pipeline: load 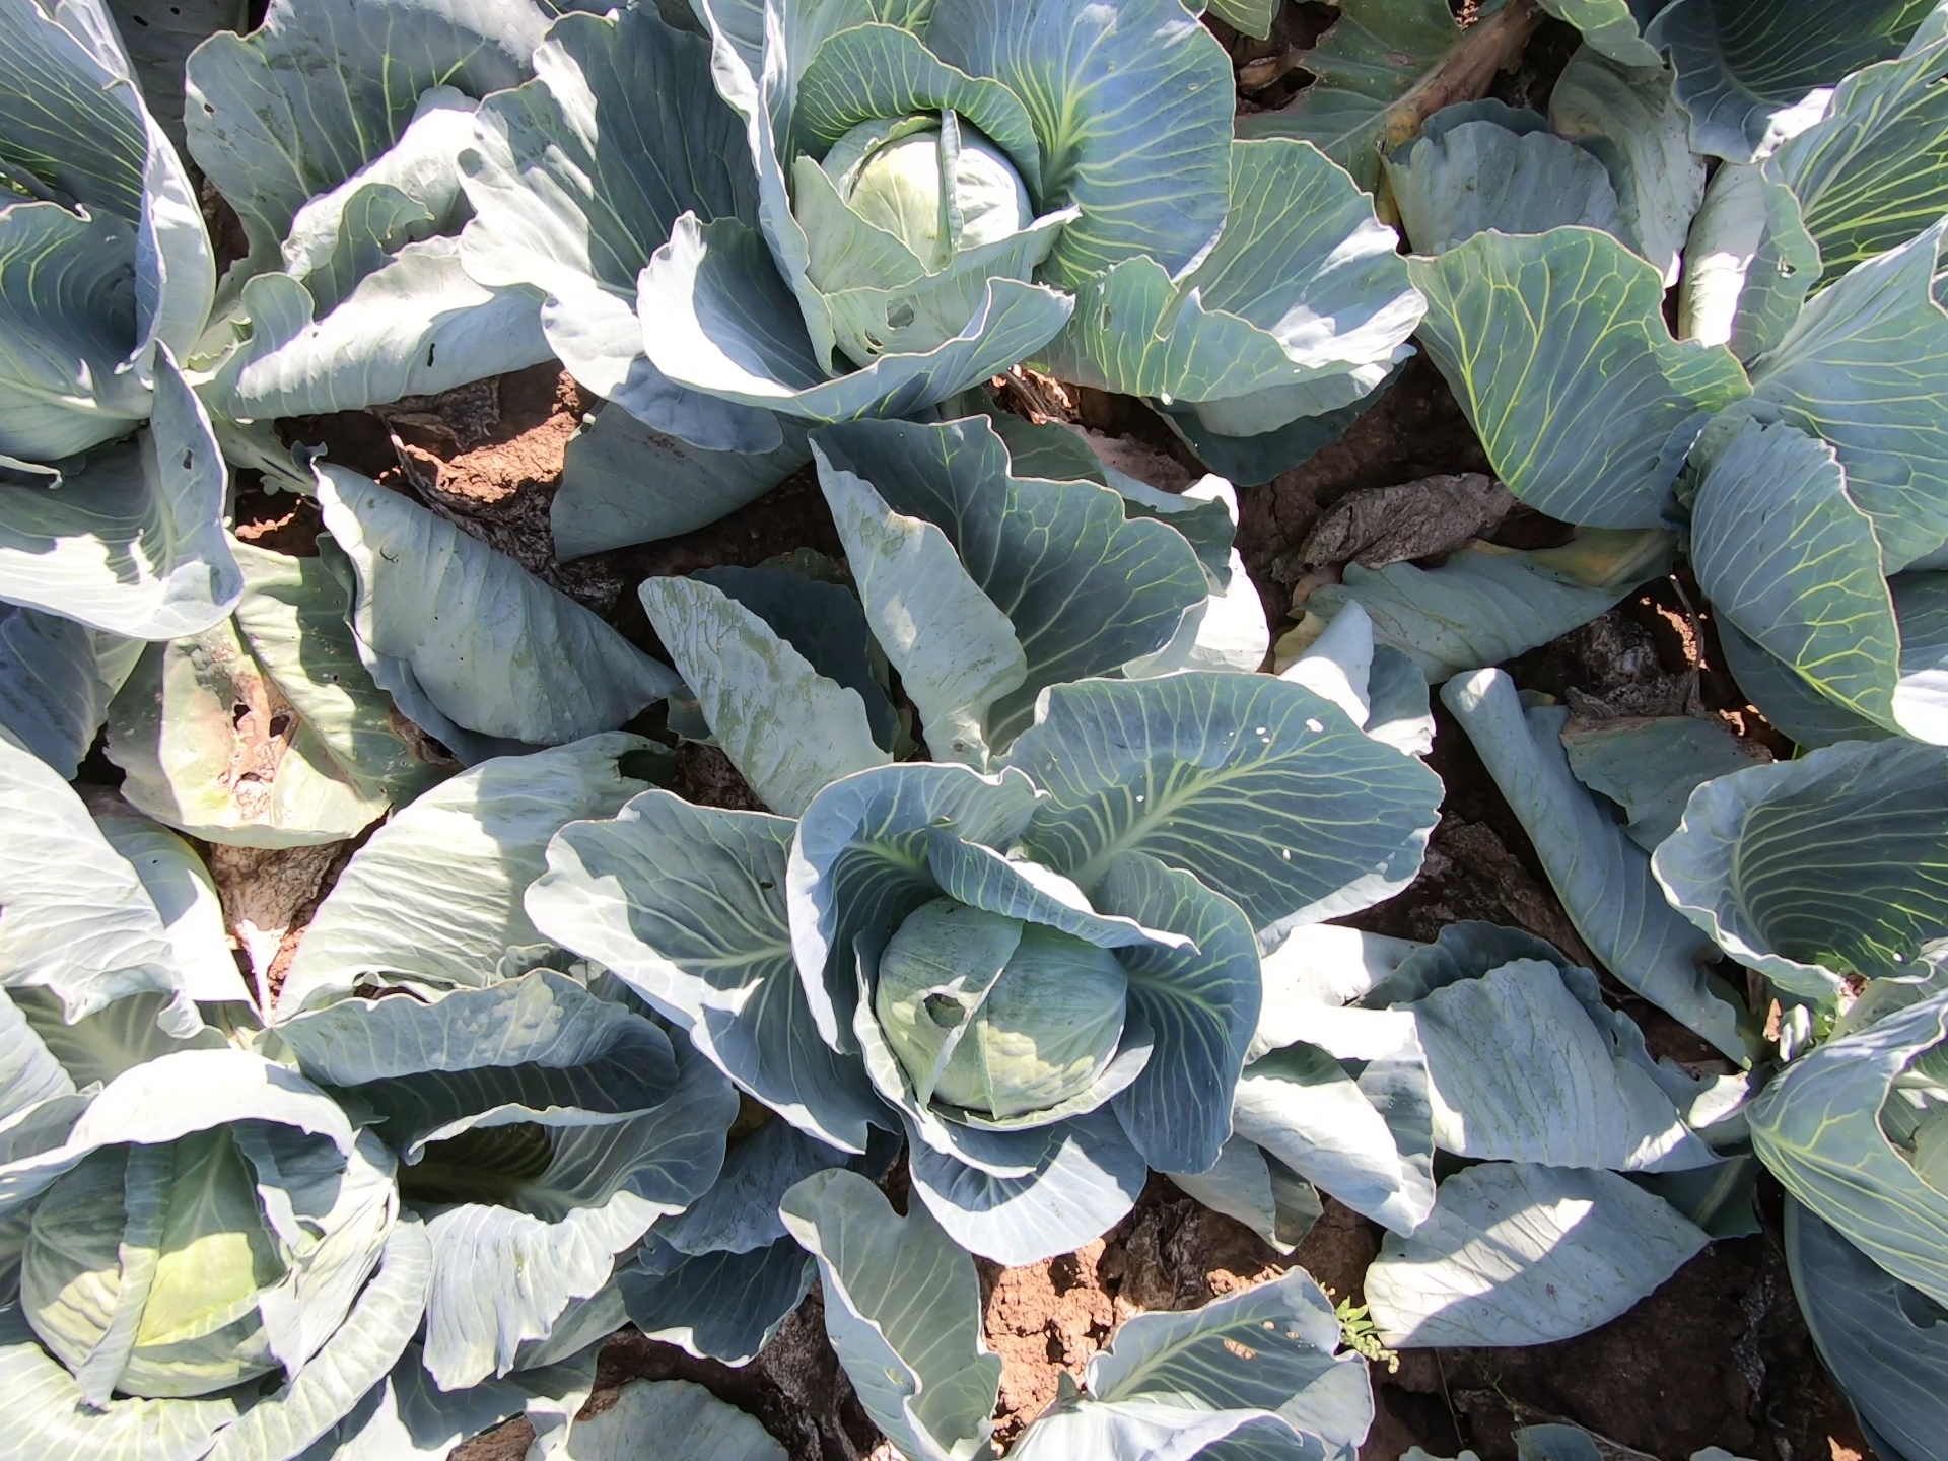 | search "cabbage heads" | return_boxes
[801,117,1033,325]
[865,878,1126,1110]
[18,1092,397,1397]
